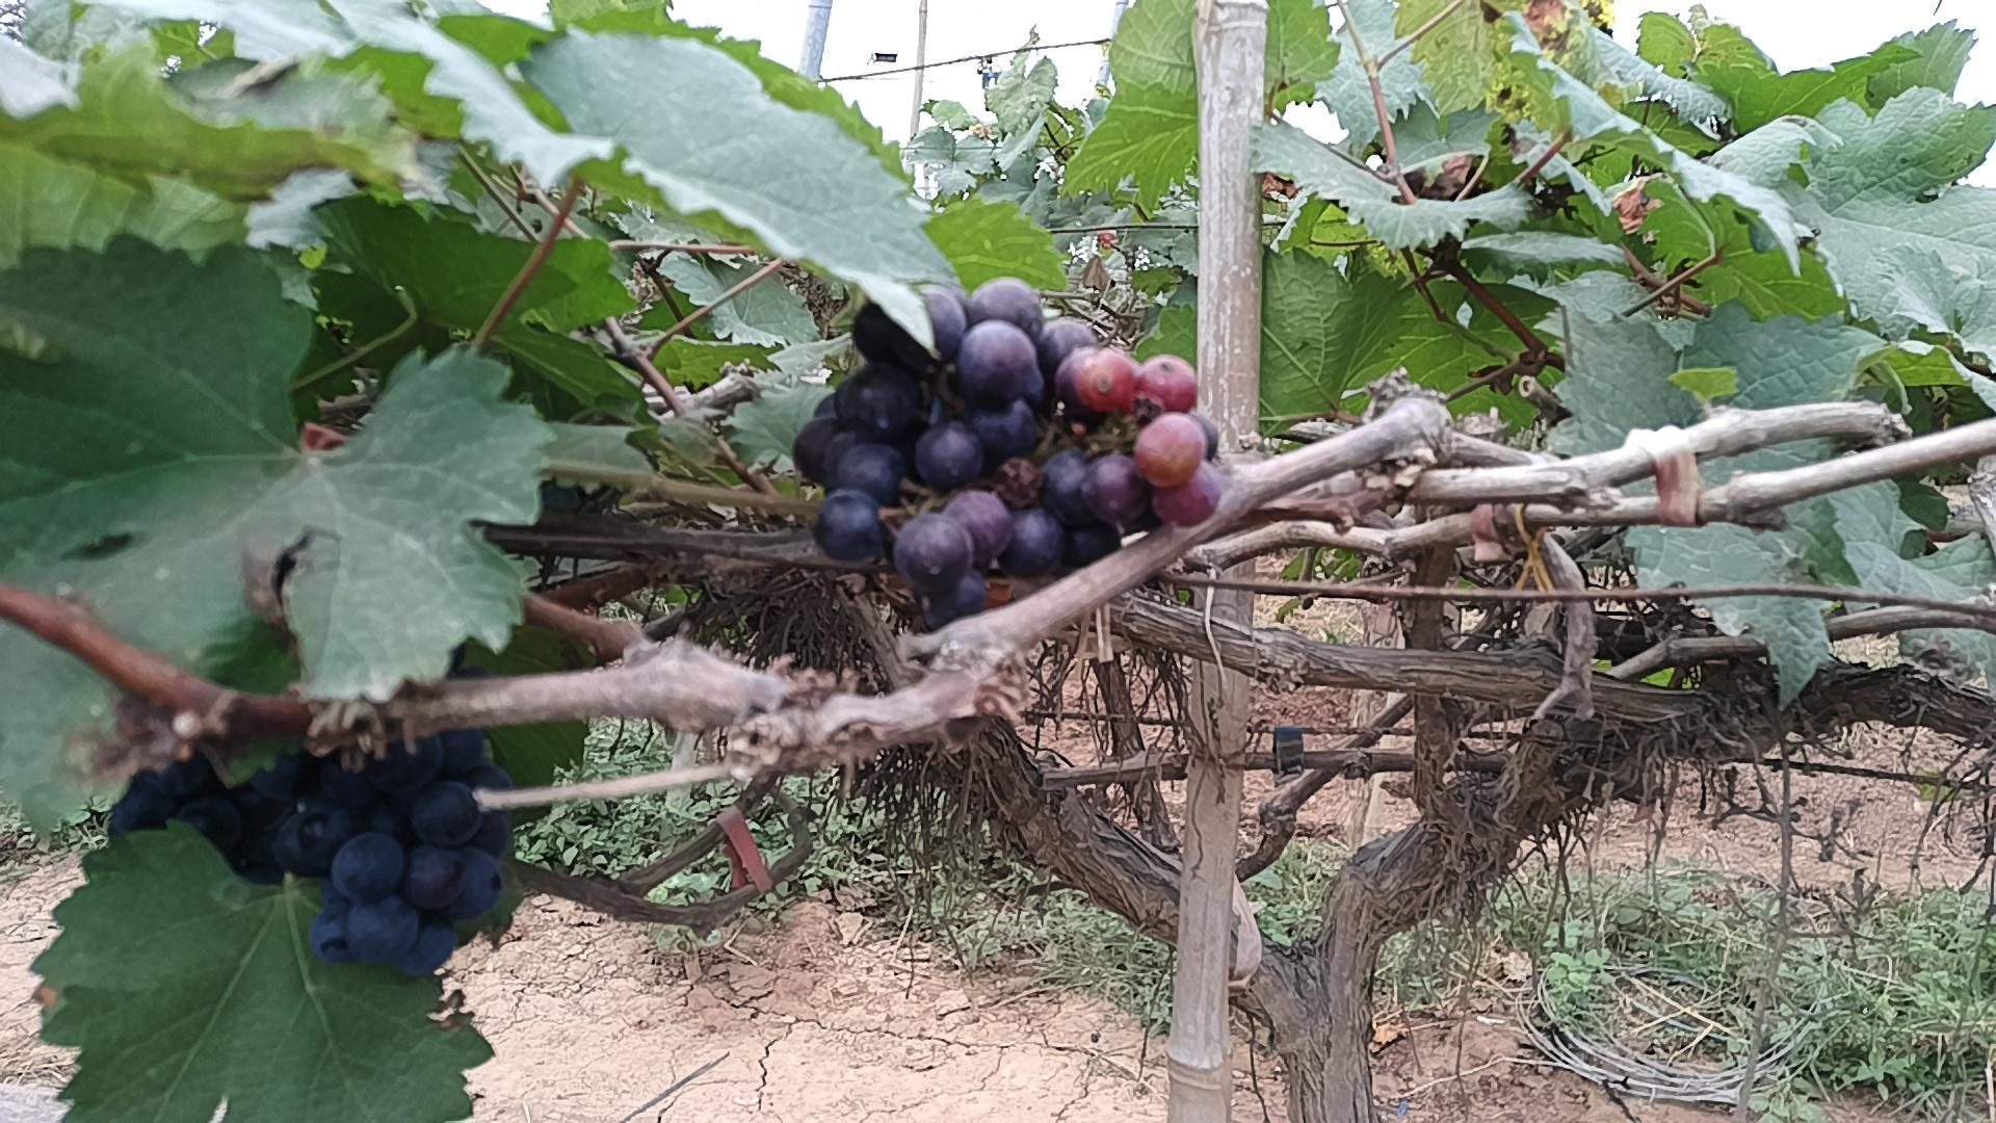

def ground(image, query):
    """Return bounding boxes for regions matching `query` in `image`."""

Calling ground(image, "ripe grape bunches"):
[109,730,515,974]
[794,281,1223,630]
